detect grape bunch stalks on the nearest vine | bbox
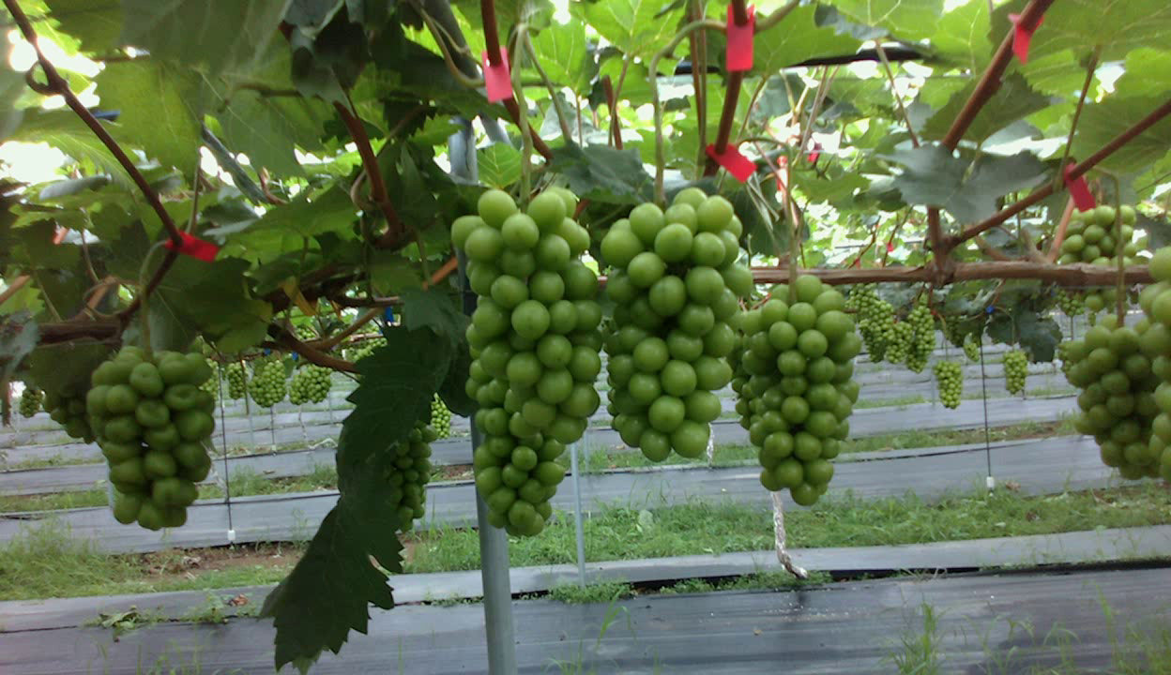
[511,23,571,211]
[648,21,727,209]
[139,240,166,360]
[734,135,797,305]
[1089,165,1124,328]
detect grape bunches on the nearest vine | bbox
[87,347,216,531]
[601,187,754,463]
[1067,313,1159,480]
[464,346,566,537]
[451,186,602,444]
[740,276,859,504]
